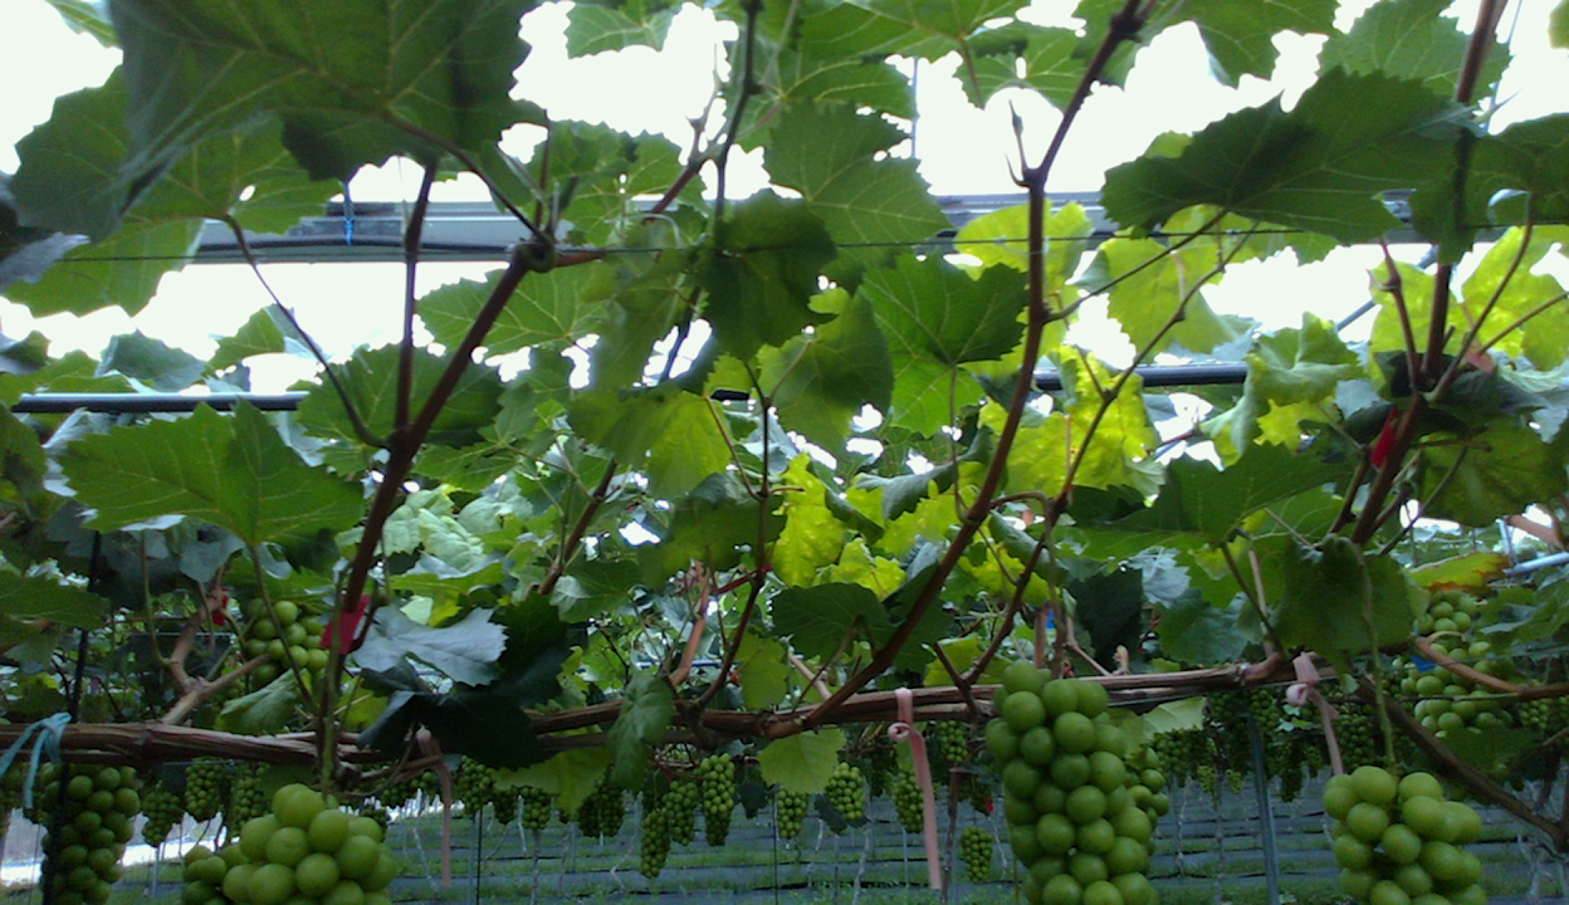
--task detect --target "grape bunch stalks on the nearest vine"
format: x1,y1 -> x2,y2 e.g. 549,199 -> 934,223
322,562 -> 353,801
1335,535 -> 1396,778
994,490 -> 1062,681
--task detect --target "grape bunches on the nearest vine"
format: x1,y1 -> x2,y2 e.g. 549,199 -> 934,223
986,661 -> 1158,904
221,783 -> 397,904
1321,765 -> 1489,904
